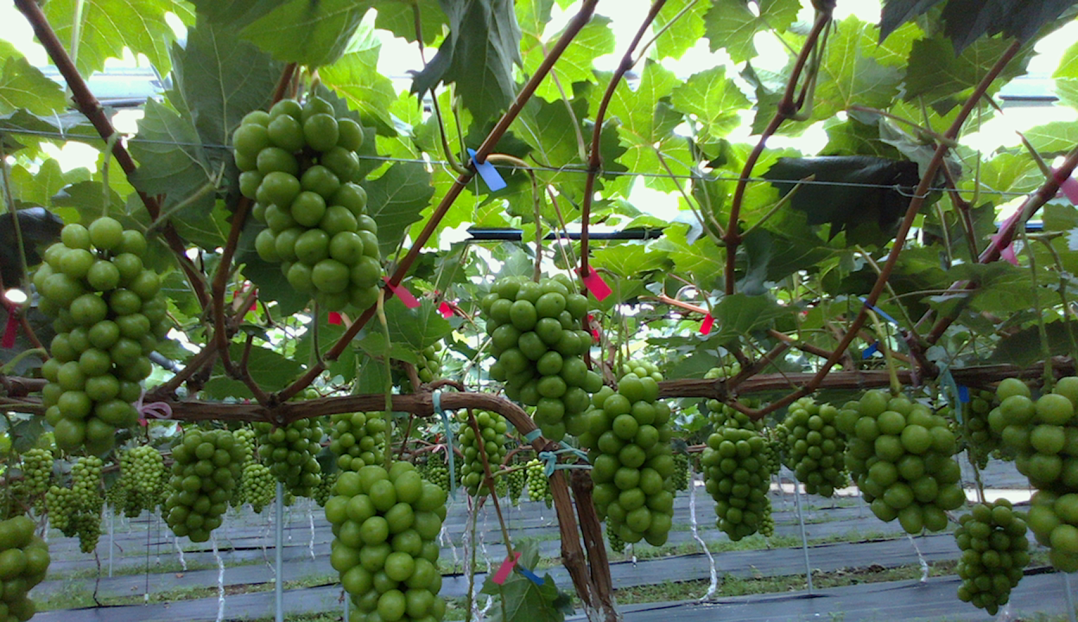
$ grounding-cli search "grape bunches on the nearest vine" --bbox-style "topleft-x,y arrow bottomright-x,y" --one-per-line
31,217 -> 172,457
480,274 -> 602,443
835,389 -> 966,534
231,97 -> 383,311
327,462 -> 449,621
989,376 -> 1077,495
578,371 -> 675,548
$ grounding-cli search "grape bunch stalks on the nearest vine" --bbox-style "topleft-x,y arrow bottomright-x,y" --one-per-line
528,170 -> 542,282
1022,233 -> 1053,392
102,131 -> 124,215
375,301 -> 393,470
869,312 -> 901,396
599,268 -> 623,381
